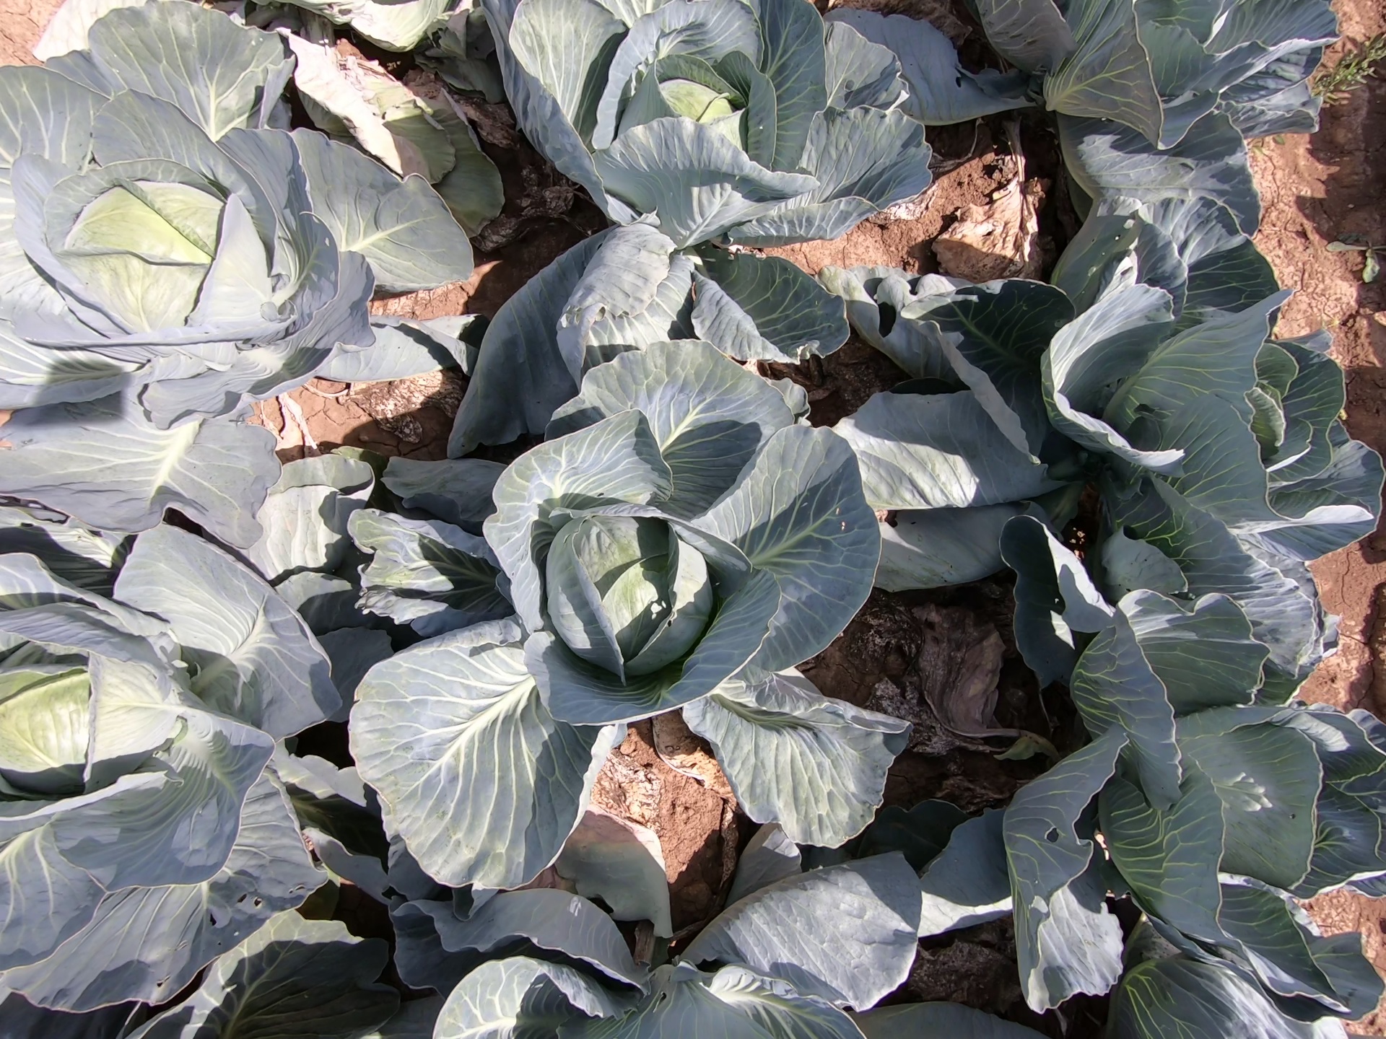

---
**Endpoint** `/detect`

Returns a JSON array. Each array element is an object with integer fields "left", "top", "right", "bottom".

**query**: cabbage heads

[
  {"left": 58, "top": 179, "right": 260, "bottom": 359},
  {"left": 543, "top": 504, "right": 711, "bottom": 674},
  {"left": 623, "top": 78, "right": 748, "bottom": 202},
  {"left": 0, "top": 619, "right": 179, "bottom": 794}
]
